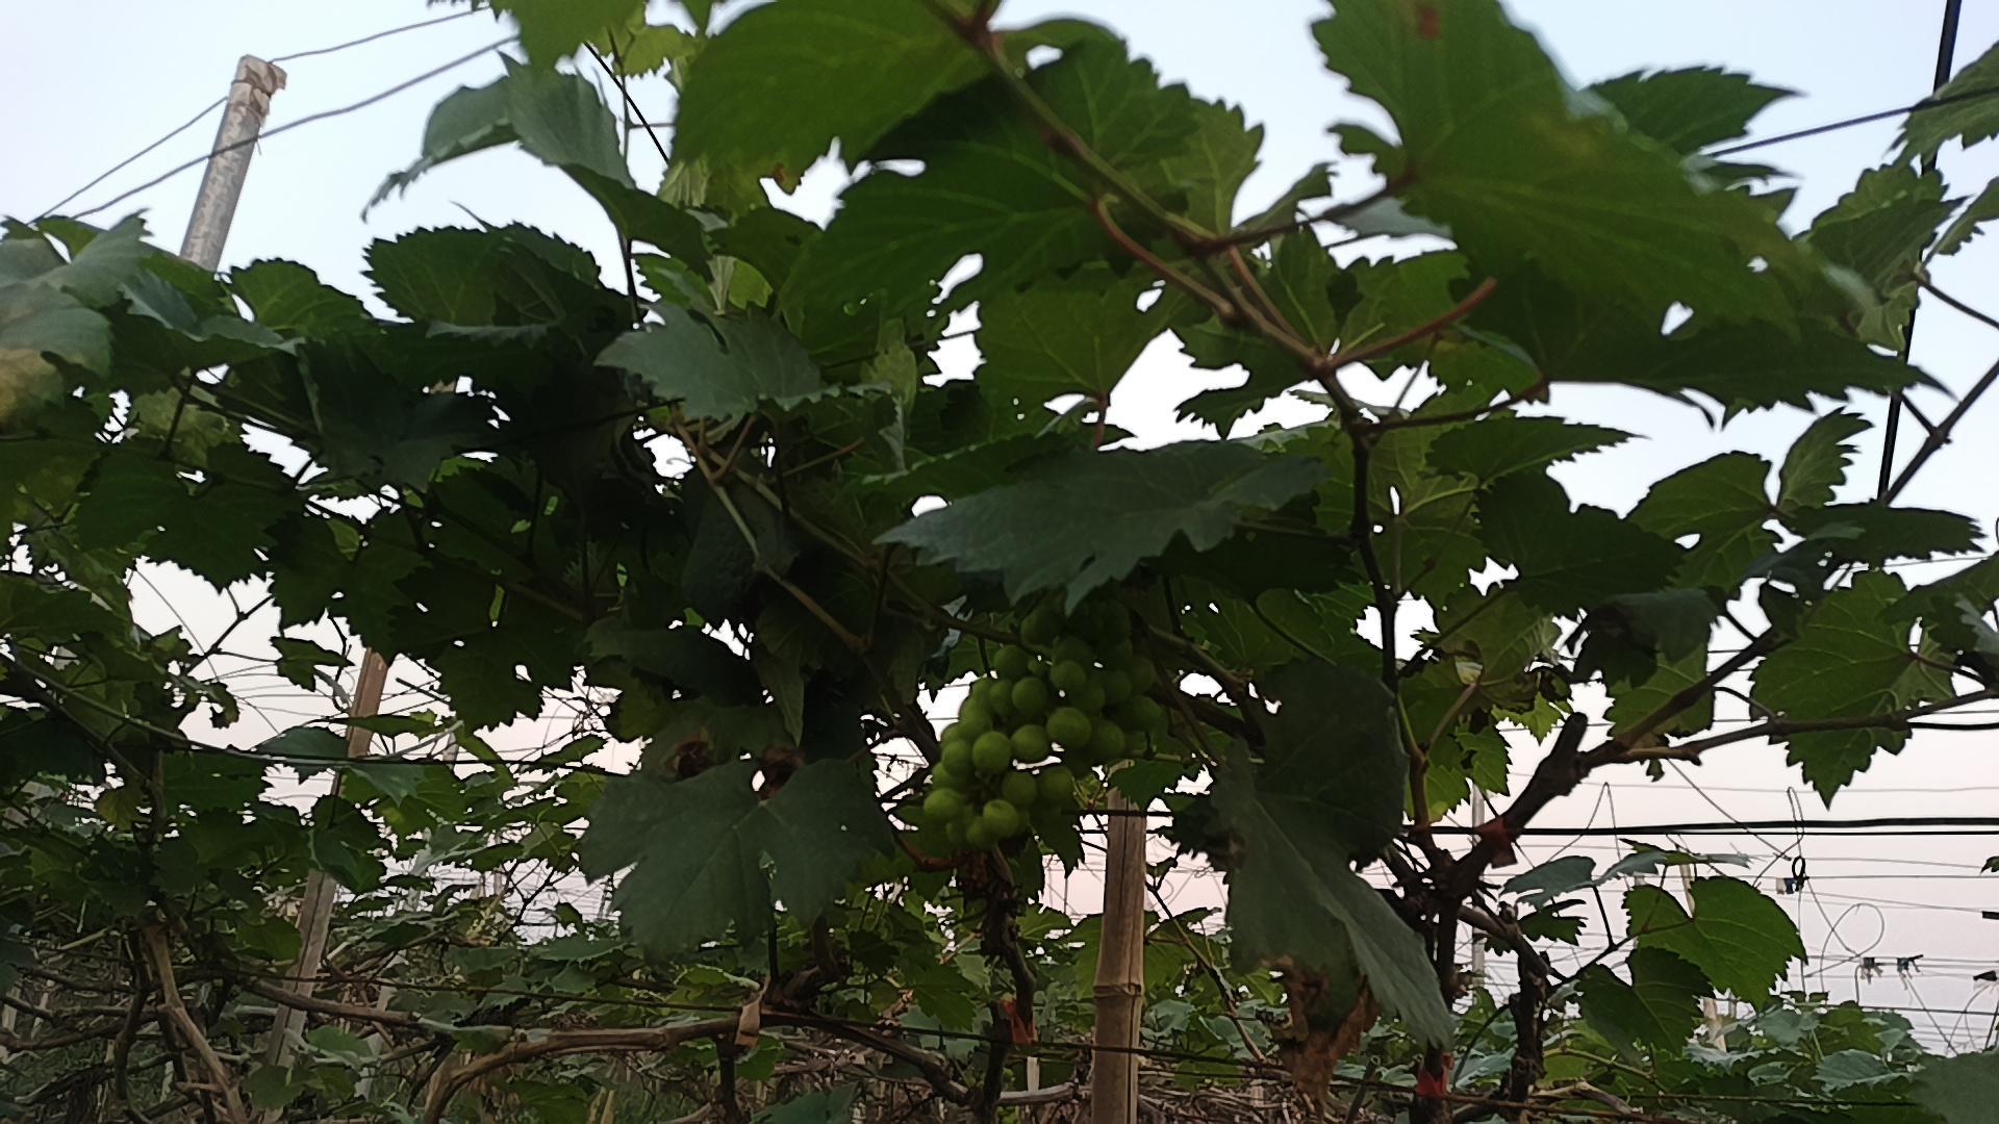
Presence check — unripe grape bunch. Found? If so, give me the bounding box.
[908,603,1168,857]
